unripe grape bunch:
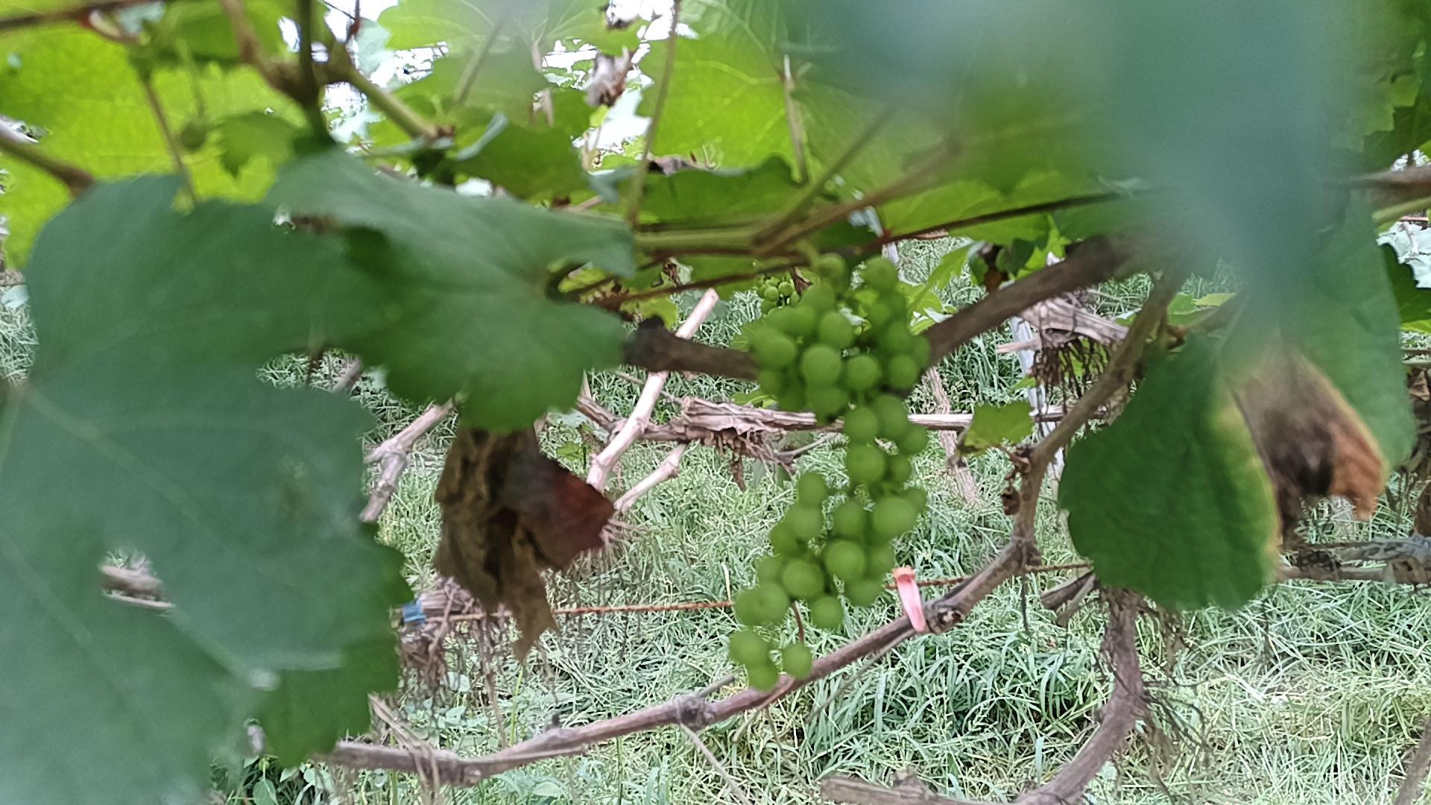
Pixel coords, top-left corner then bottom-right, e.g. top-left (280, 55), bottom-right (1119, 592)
top-left (730, 256), bottom-right (926, 689)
